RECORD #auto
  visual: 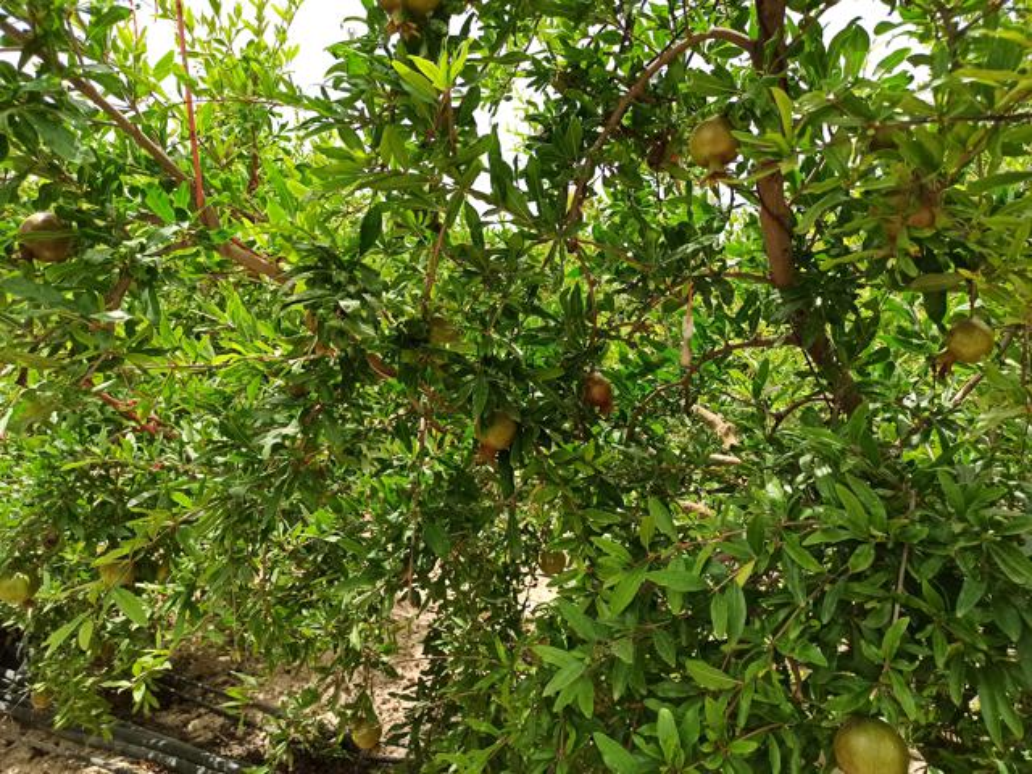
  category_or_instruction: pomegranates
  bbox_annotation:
[31,693,55,716]
[100,564,134,585]
[540,551,566,574]
[350,719,387,755]
[927,319,995,379]
[19,213,69,263]
[377,0,442,42]
[832,716,908,774]
[868,193,937,243]
[0,569,35,610]
[472,413,519,468]
[584,376,614,416]
[687,116,740,187]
